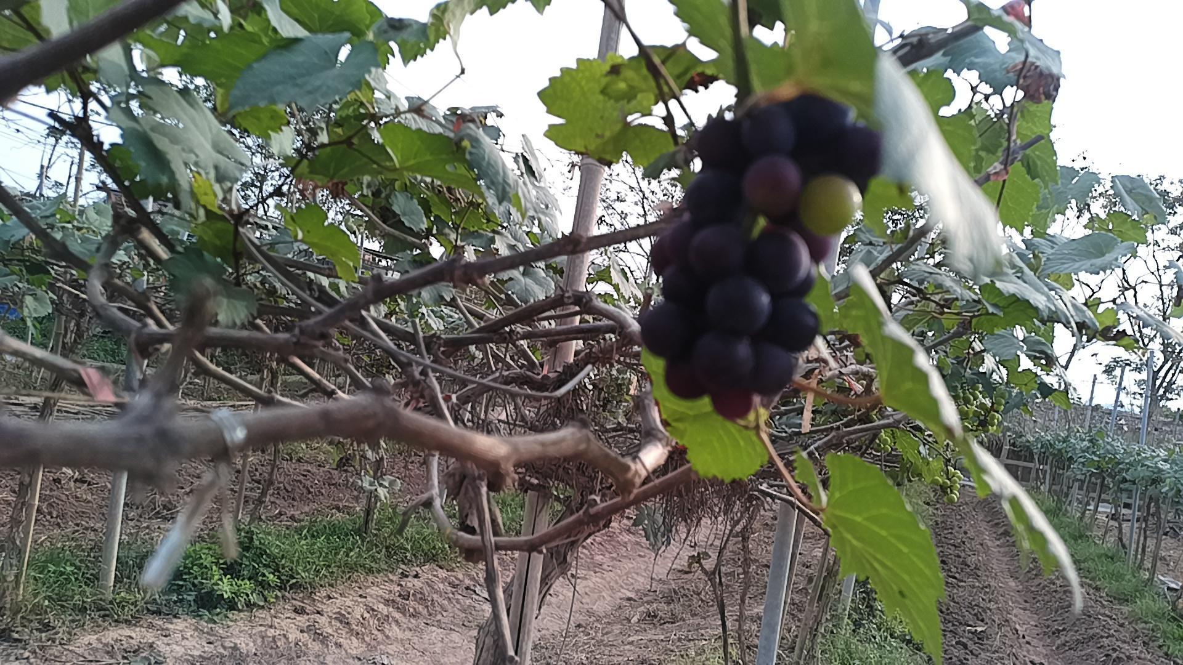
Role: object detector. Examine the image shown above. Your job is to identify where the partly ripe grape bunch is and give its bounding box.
[638,94,881,423]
